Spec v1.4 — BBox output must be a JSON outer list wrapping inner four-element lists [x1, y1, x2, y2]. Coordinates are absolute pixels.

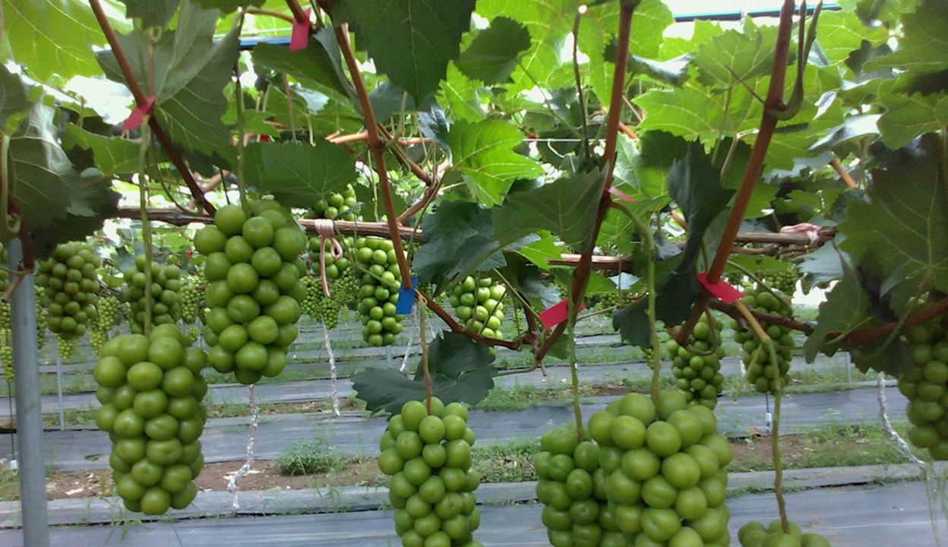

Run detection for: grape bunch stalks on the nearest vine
[[567, 270, 583, 444], [417, 295, 433, 415], [139, 115, 152, 339], [234, 60, 254, 219], [609, 201, 662, 403], [734, 300, 790, 533]]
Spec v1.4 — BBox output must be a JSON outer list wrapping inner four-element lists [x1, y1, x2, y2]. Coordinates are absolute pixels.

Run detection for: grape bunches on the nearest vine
[[378, 397, 484, 546], [193, 198, 307, 384], [738, 520, 830, 546], [92, 323, 208, 516], [535, 424, 642, 546], [589, 389, 732, 546]]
